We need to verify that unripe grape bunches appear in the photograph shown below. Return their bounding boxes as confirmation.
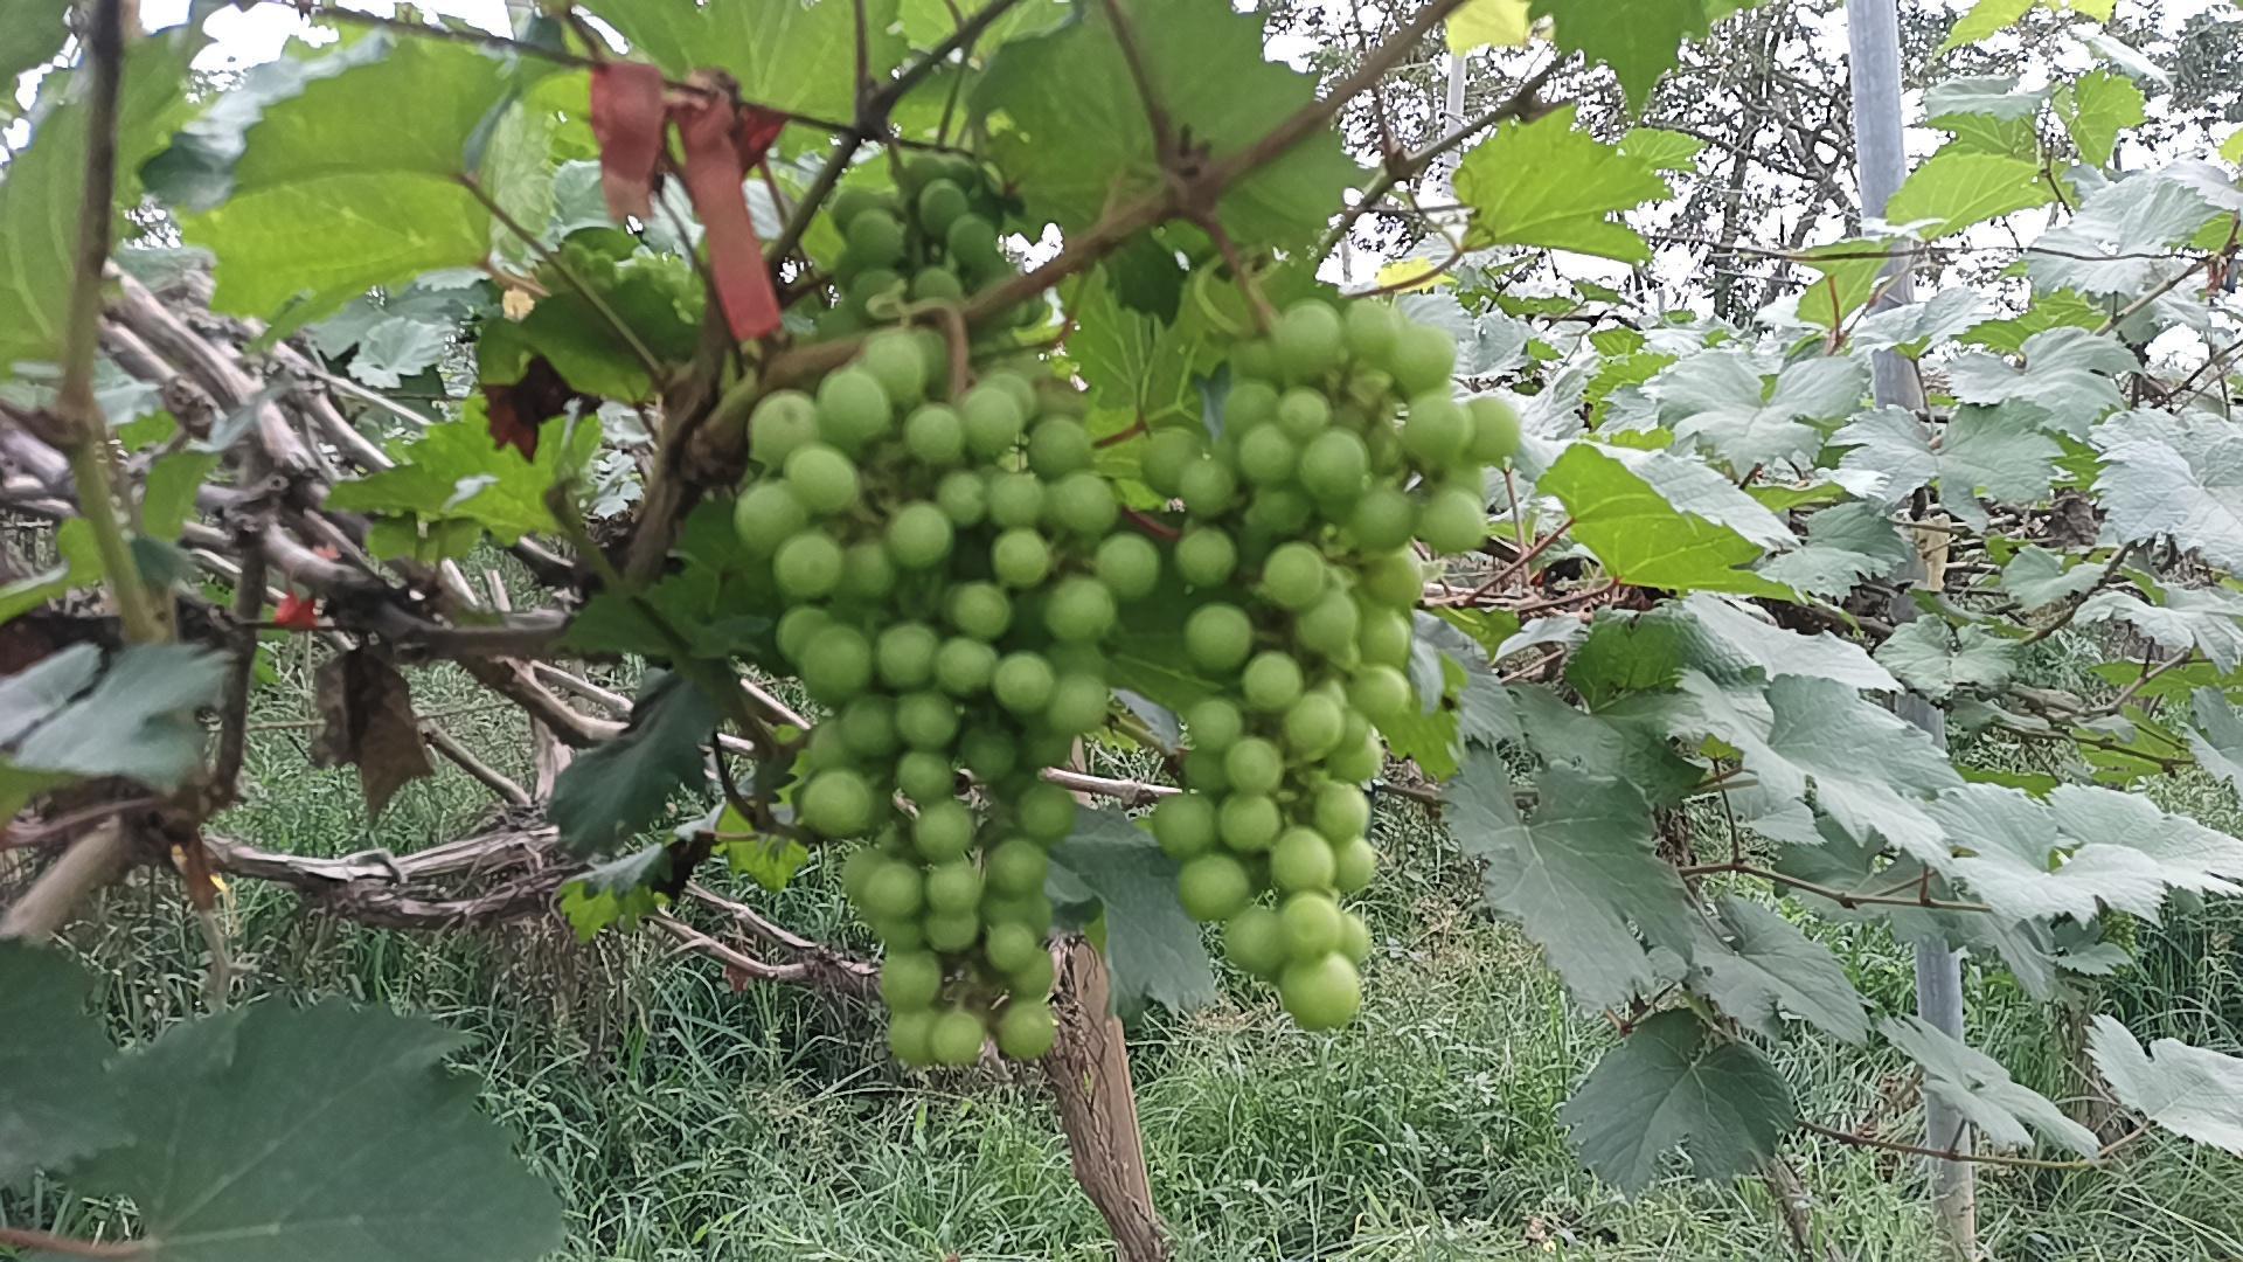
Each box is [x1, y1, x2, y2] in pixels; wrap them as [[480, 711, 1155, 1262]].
[[794, 155, 1048, 342], [734, 326, 1160, 1065], [1139, 297, 1520, 1029]]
